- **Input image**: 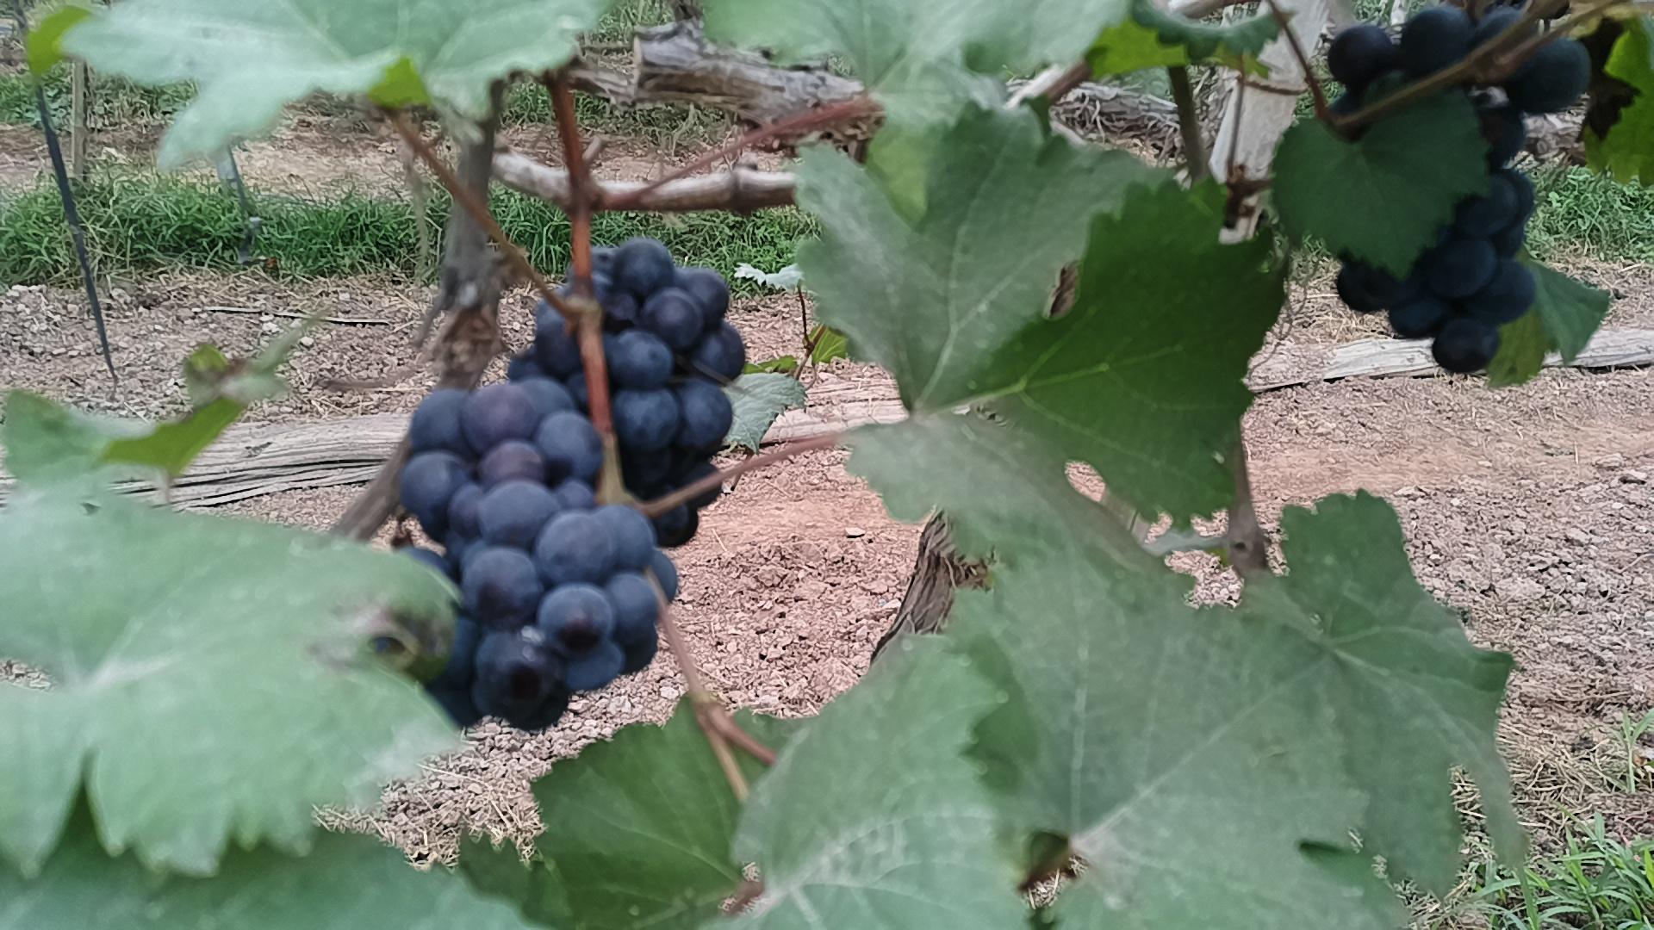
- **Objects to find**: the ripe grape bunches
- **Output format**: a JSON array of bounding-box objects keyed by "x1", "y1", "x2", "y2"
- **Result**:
[
  {"x1": 1321, "y1": 6, "x2": 1595, "y2": 374},
  {"x1": 399, "y1": 239, "x2": 745, "y2": 728}
]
